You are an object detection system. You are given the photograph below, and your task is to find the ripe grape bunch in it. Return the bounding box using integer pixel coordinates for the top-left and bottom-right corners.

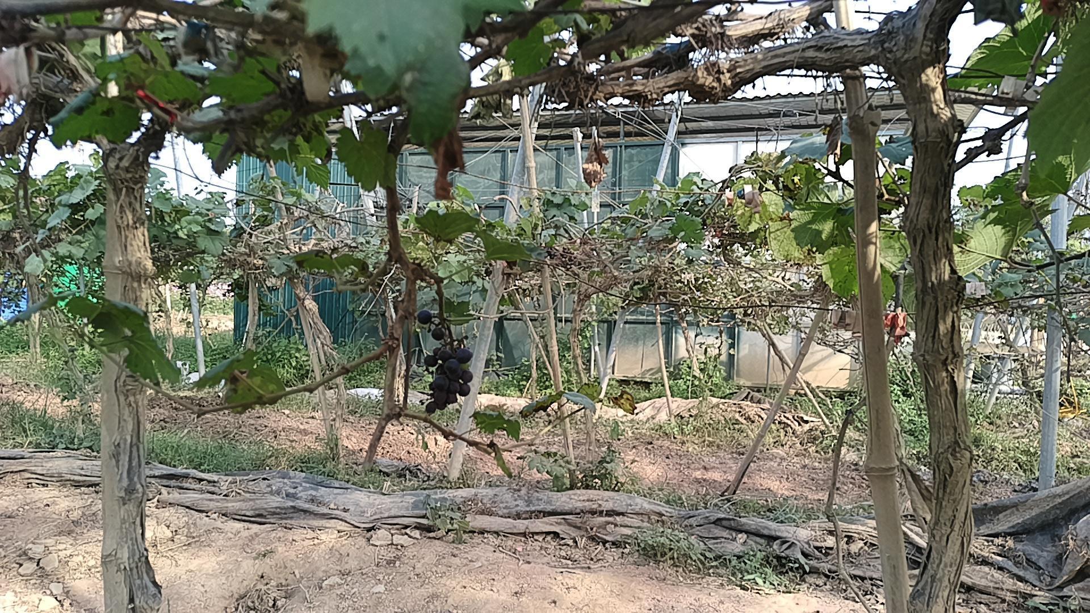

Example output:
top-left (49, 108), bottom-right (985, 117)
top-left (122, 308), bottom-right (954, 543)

top-left (417, 310), bottom-right (473, 414)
